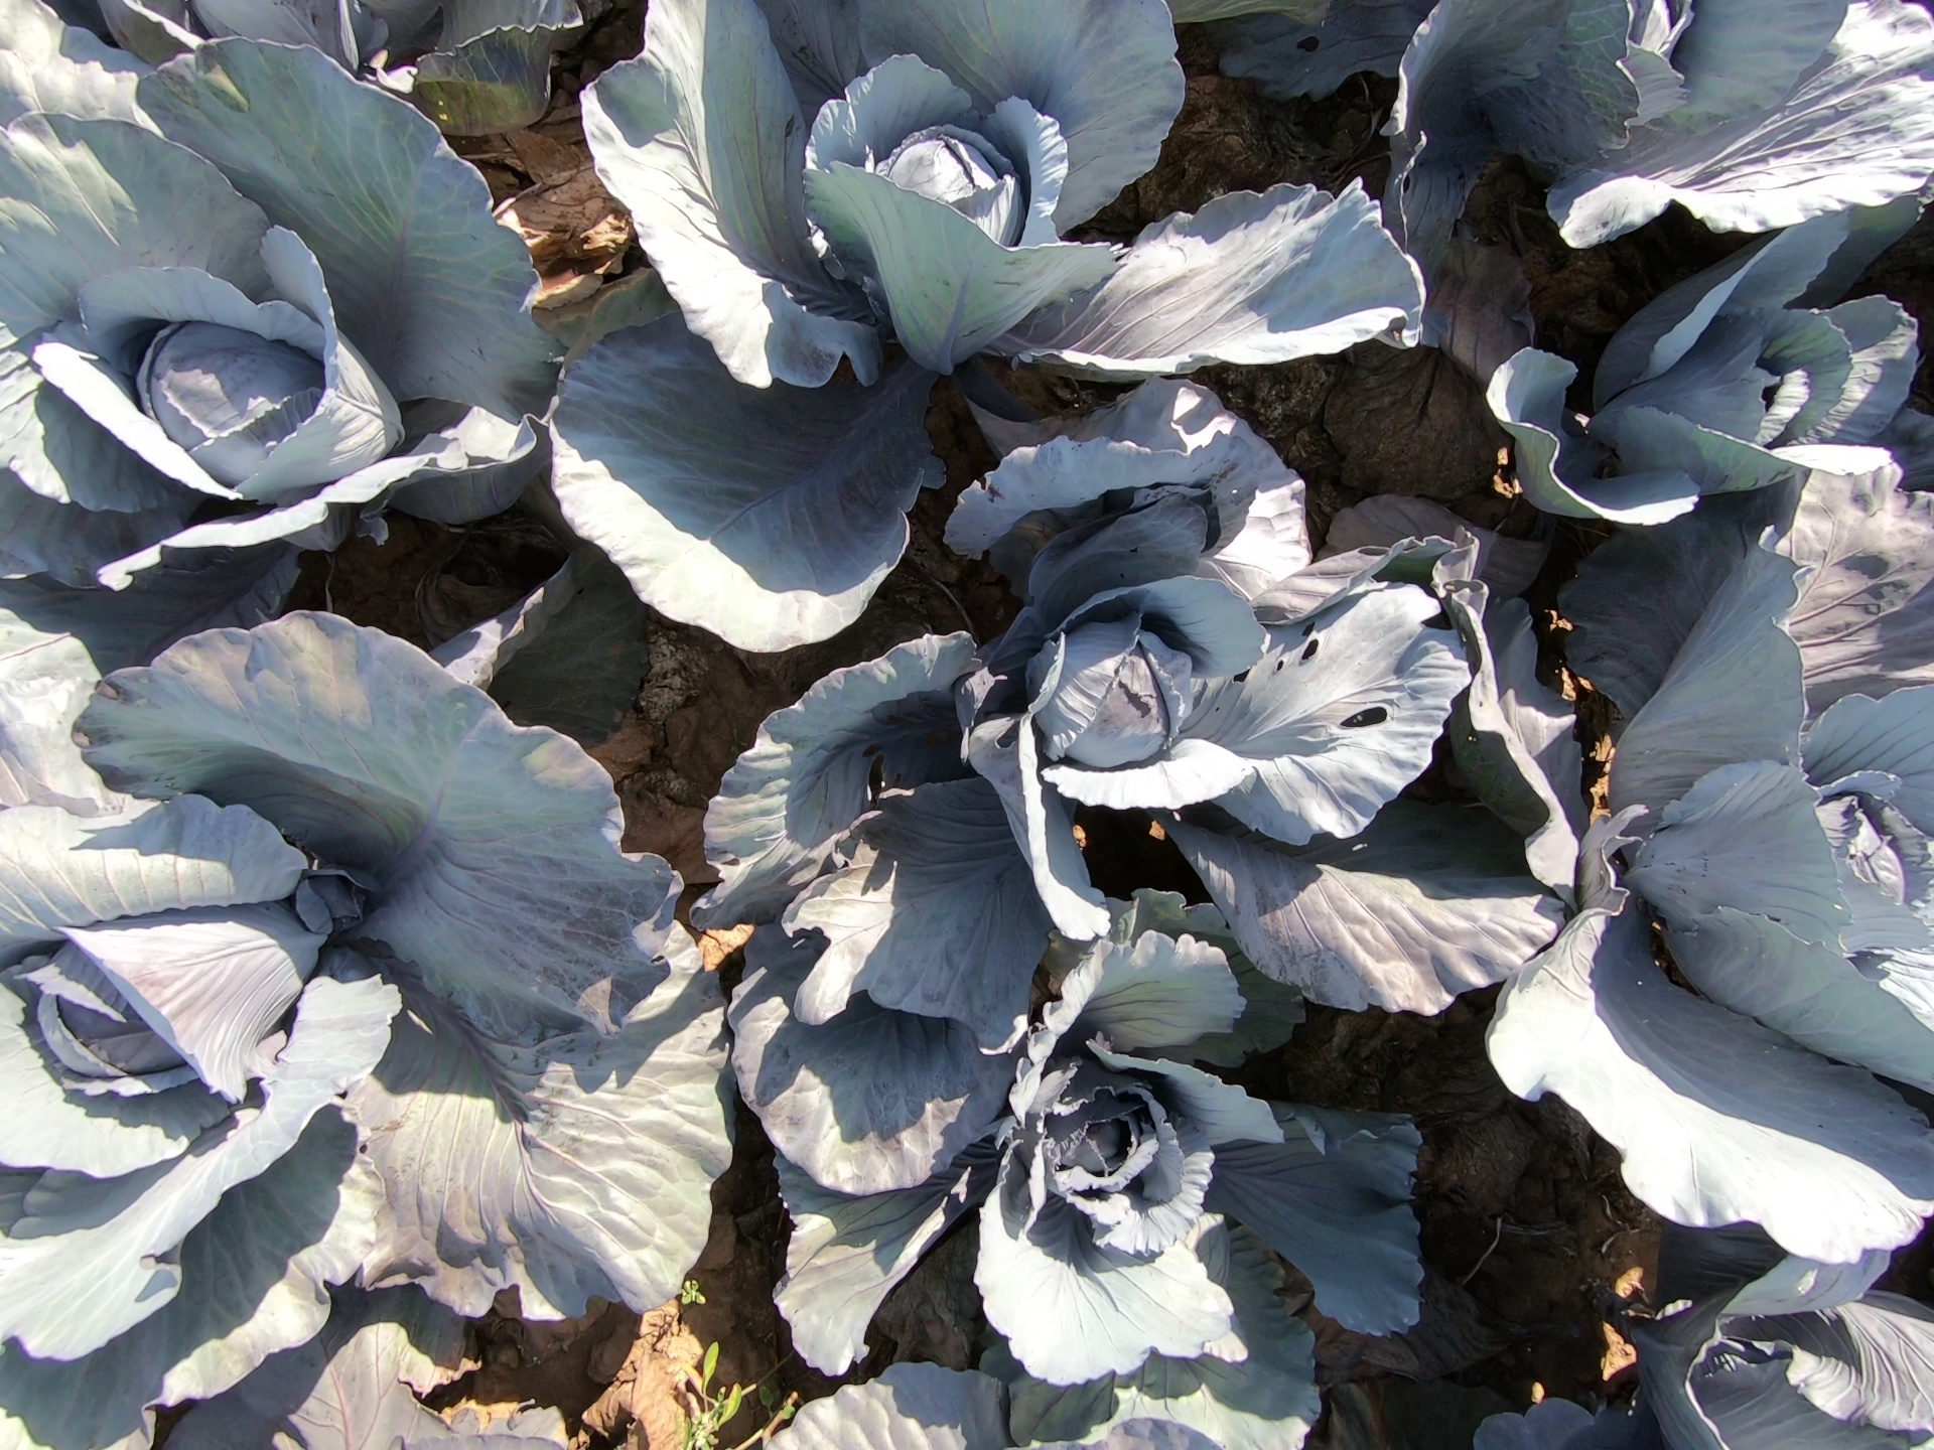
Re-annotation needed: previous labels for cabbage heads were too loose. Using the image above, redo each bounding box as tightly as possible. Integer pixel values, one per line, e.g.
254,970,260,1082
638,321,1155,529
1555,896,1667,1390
1752,800,1907,952
1052,1099,1143,1170
1032,626,1195,763
1572,4,1673,86
36,896,277,1074
140,309,353,493
880,136,1021,283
